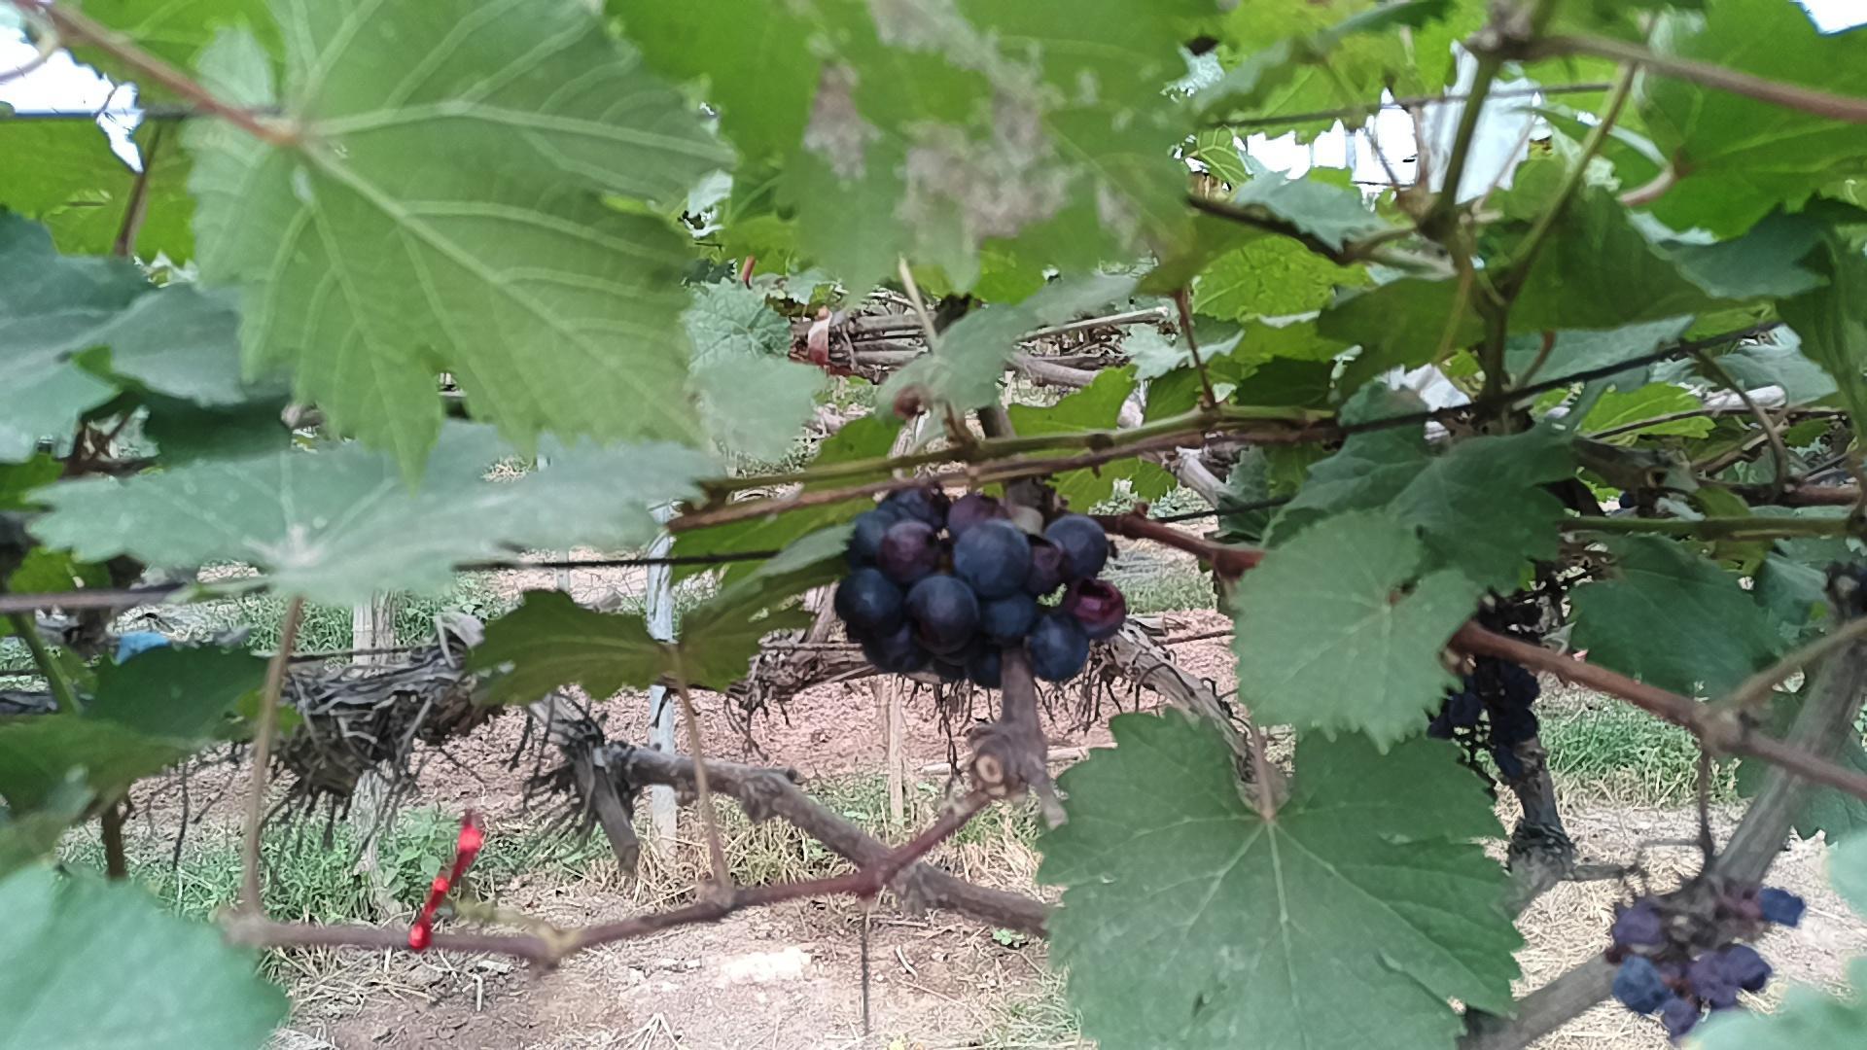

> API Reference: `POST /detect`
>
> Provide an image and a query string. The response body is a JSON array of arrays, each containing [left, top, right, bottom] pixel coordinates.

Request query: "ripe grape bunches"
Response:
[[1427, 596, 1545, 781], [834, 487, 1124, 686], [1603, 872, 1805, 1043]]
